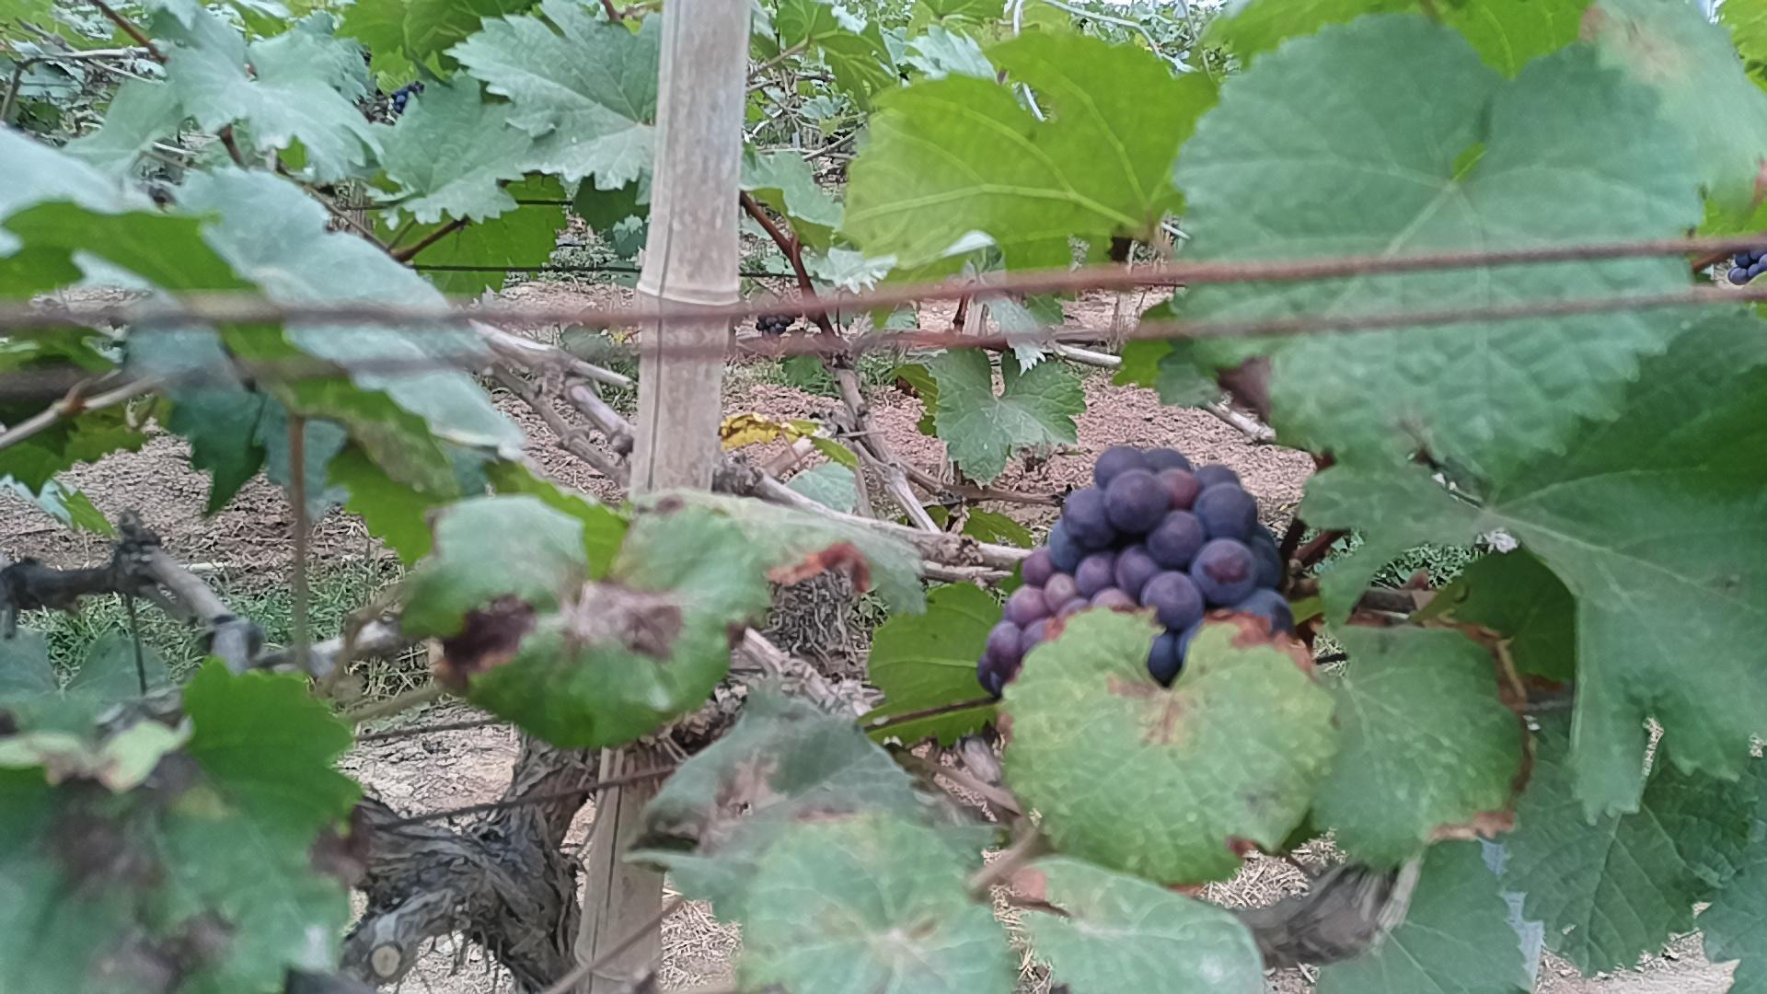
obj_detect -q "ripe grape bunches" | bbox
[977,447,1293,699]
[1717,248,1766,285]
